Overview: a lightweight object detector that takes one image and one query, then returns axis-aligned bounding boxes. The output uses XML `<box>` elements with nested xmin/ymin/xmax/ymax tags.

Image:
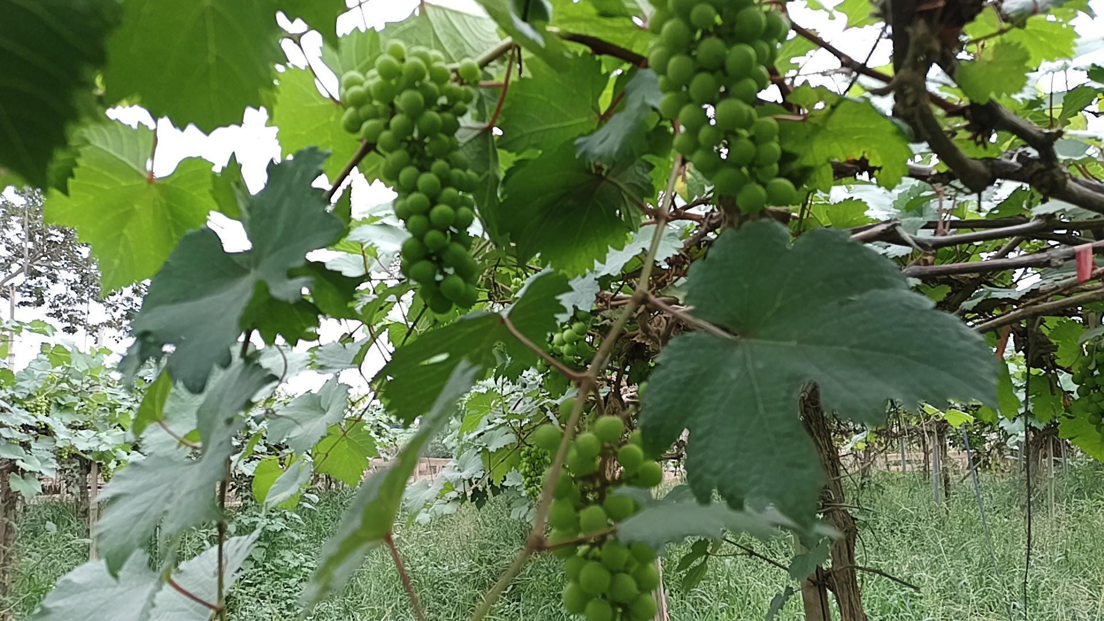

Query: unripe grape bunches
<box><xmin>519</xmin><ymin>445</ymin><xmax>550</xmax><ymax>500</ymax></box>
<box><xmin>536</xmin><ymin>305</ymin><xmax>596</xmax><ymax>373</ymax></box>
<box><xmin>535</xmin><ymin>396</ymin><xmax>661</xmax><ymax>620</ymax></box>
<box><xmin>343</xmin><ymin>44</ymin><xmax>482</xmax><ymax>313</ymax></box>
<box><xmin>649</xmin><ymin>0</ymin><xmax>794</xmax><ymax>213</ymax></box>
